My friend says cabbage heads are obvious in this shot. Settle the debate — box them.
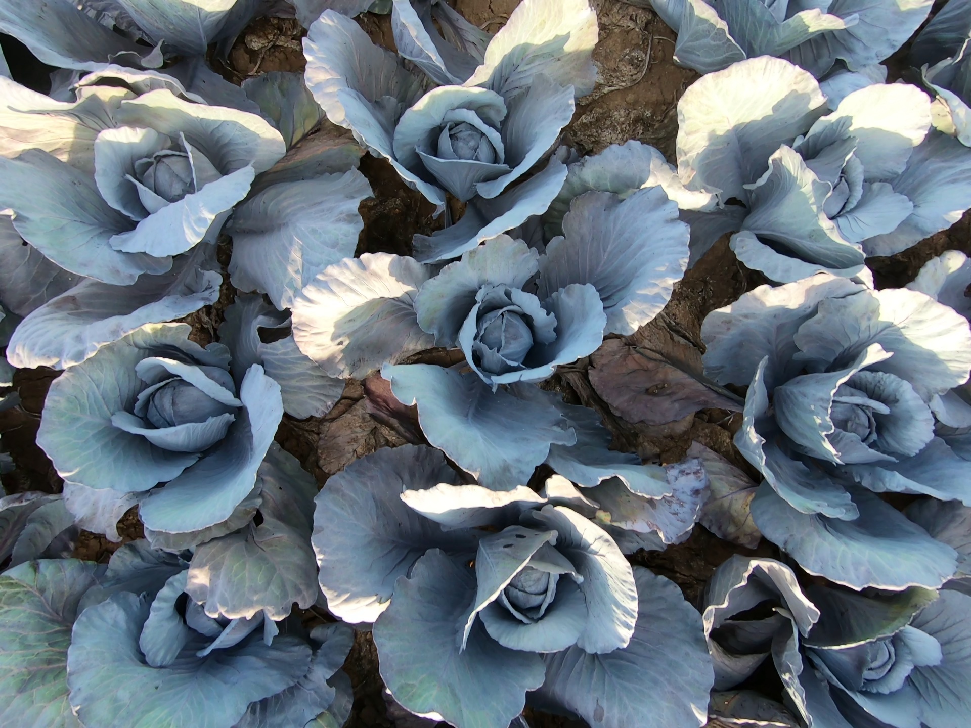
[786,159,848,224]
[150,374,229,434]
[504,539,554,608]
[807,393,872,451]
[186,571,261,638]
[481,311,528,362]
[445,122,499,177]
[140,154,218,226]
[829,621,894,680]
